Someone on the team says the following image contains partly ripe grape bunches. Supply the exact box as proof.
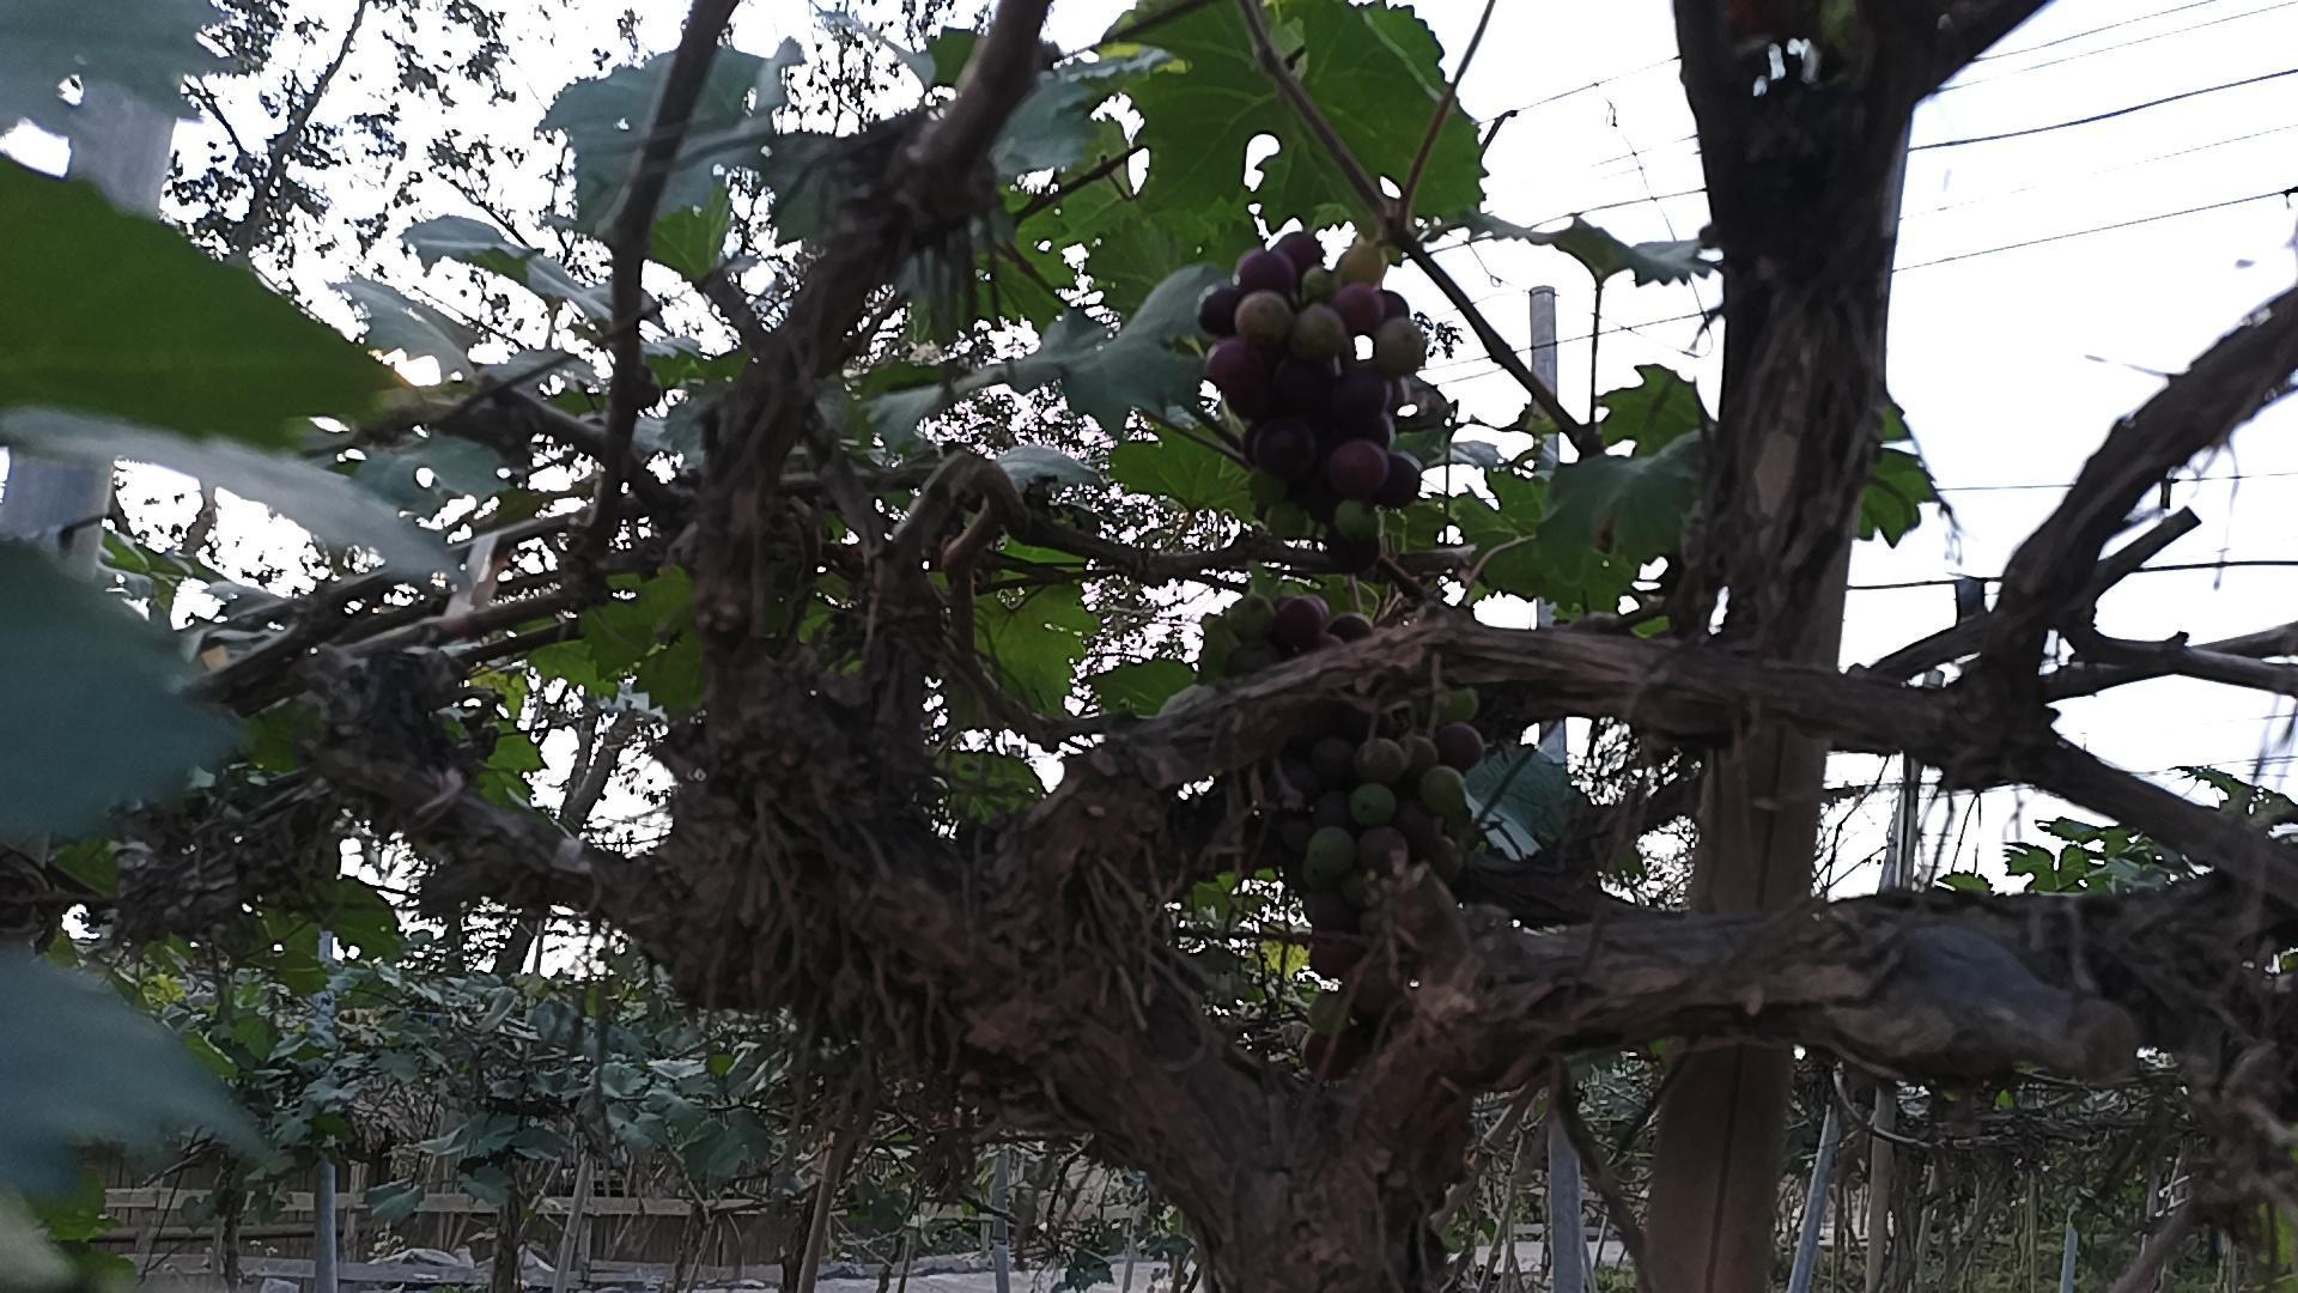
[1227,595,1483,1077]
[1197,233,1424,573]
